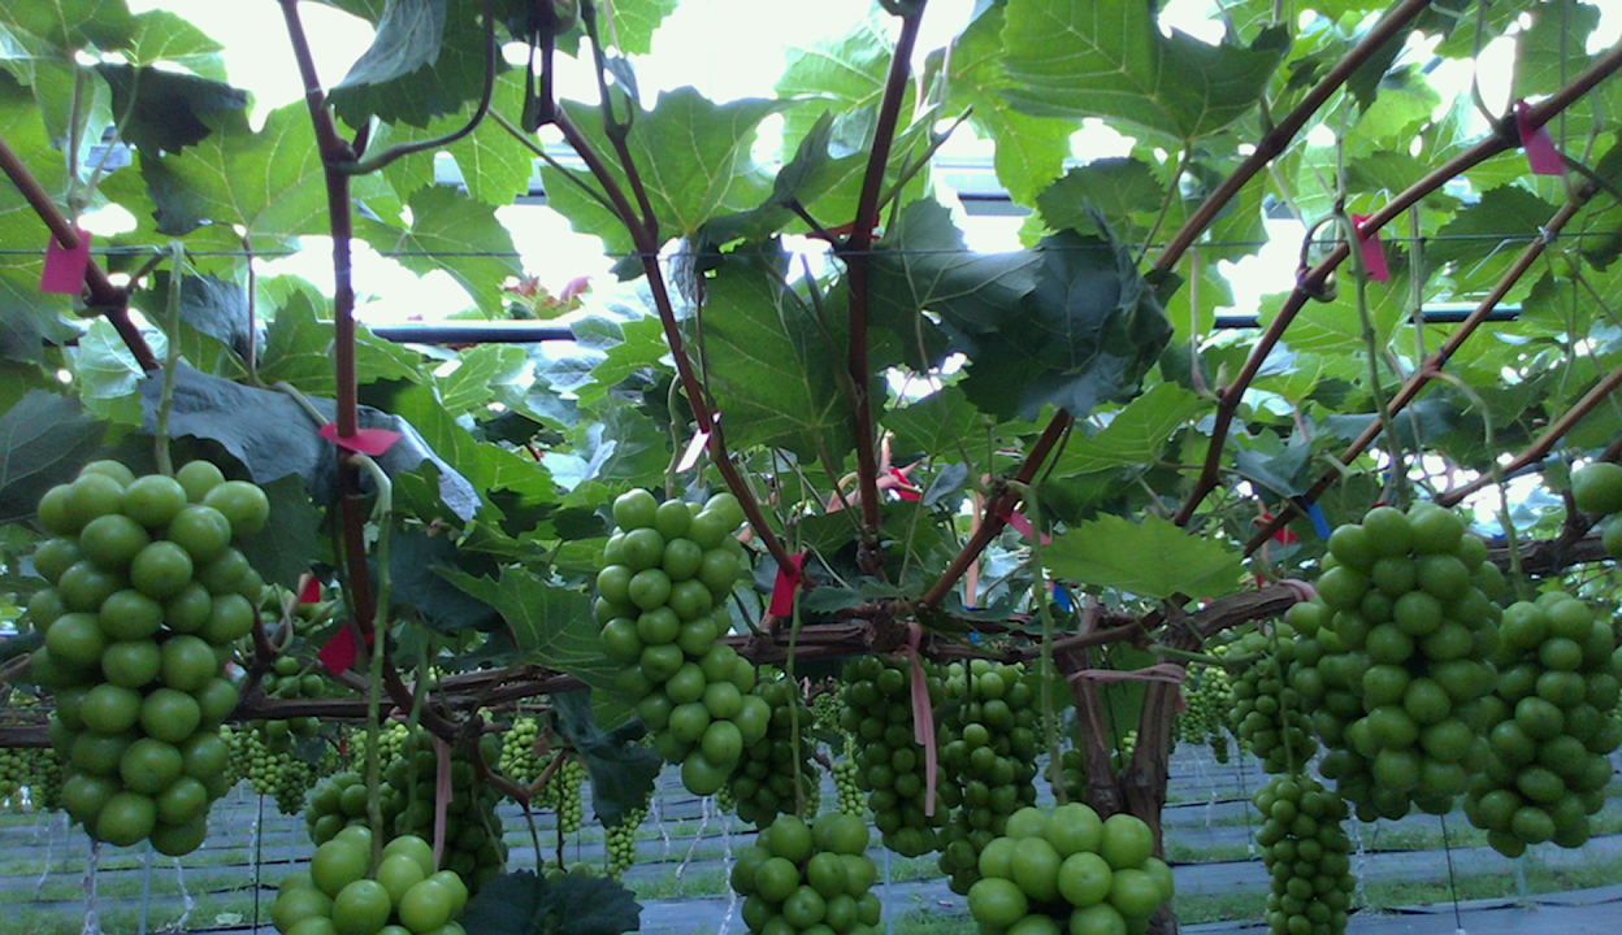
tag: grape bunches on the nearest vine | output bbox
[1317,501,1505,819]
[968,804,1174,932]
[272,826,468,935]
[730,812,882,934]
[1463,592,1621,857]
[27,460,272,857]
[590,487,772,799]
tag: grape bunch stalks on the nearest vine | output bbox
[1300,213,1410,512]
[1009,477,1068,805]
[155,242,185,477]
[347,453,395,880]
[786,583,806,818]
[664,371,684,500]
[1431,369,1527,603]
